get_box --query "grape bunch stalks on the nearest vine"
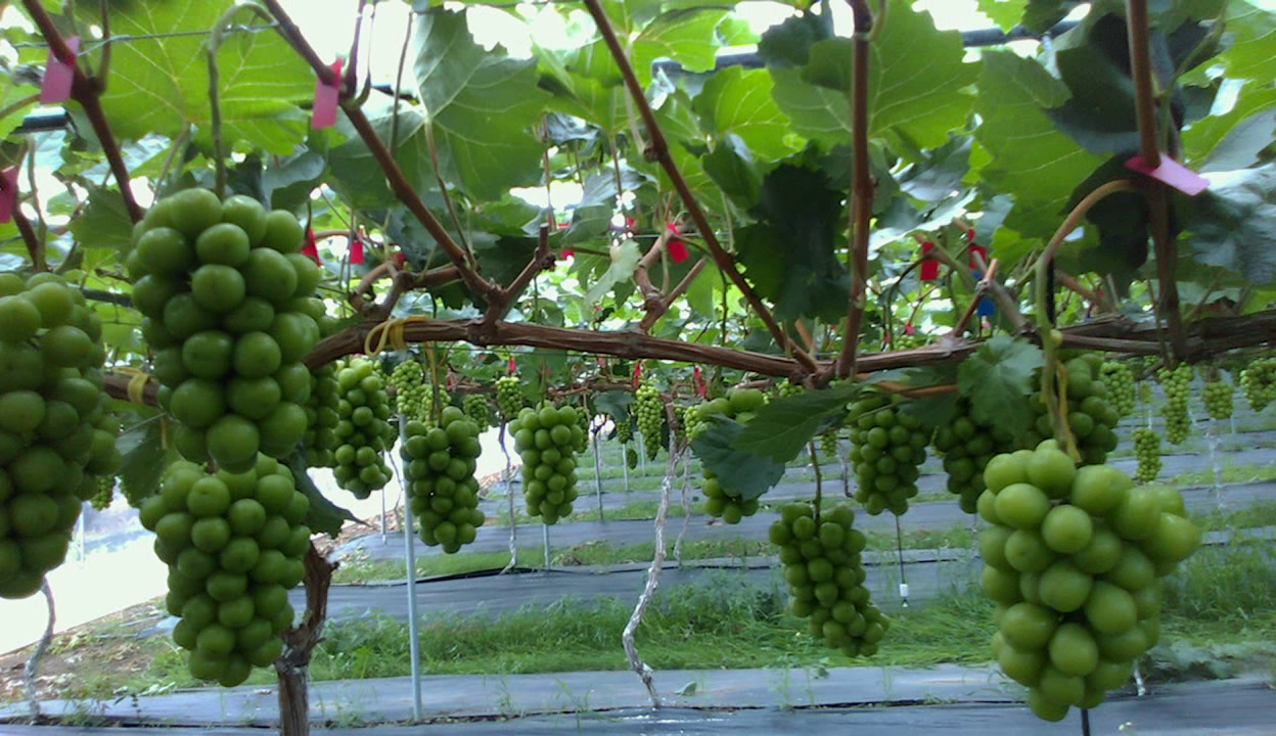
[206,3,303,198]
[1035,179,1139,451]
[209,461,214,471]
[26,133,47,268]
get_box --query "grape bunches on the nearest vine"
[143,455,311,688]
[128,188,323,474]
[977,442,1200,722]
[0,272,100,599]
